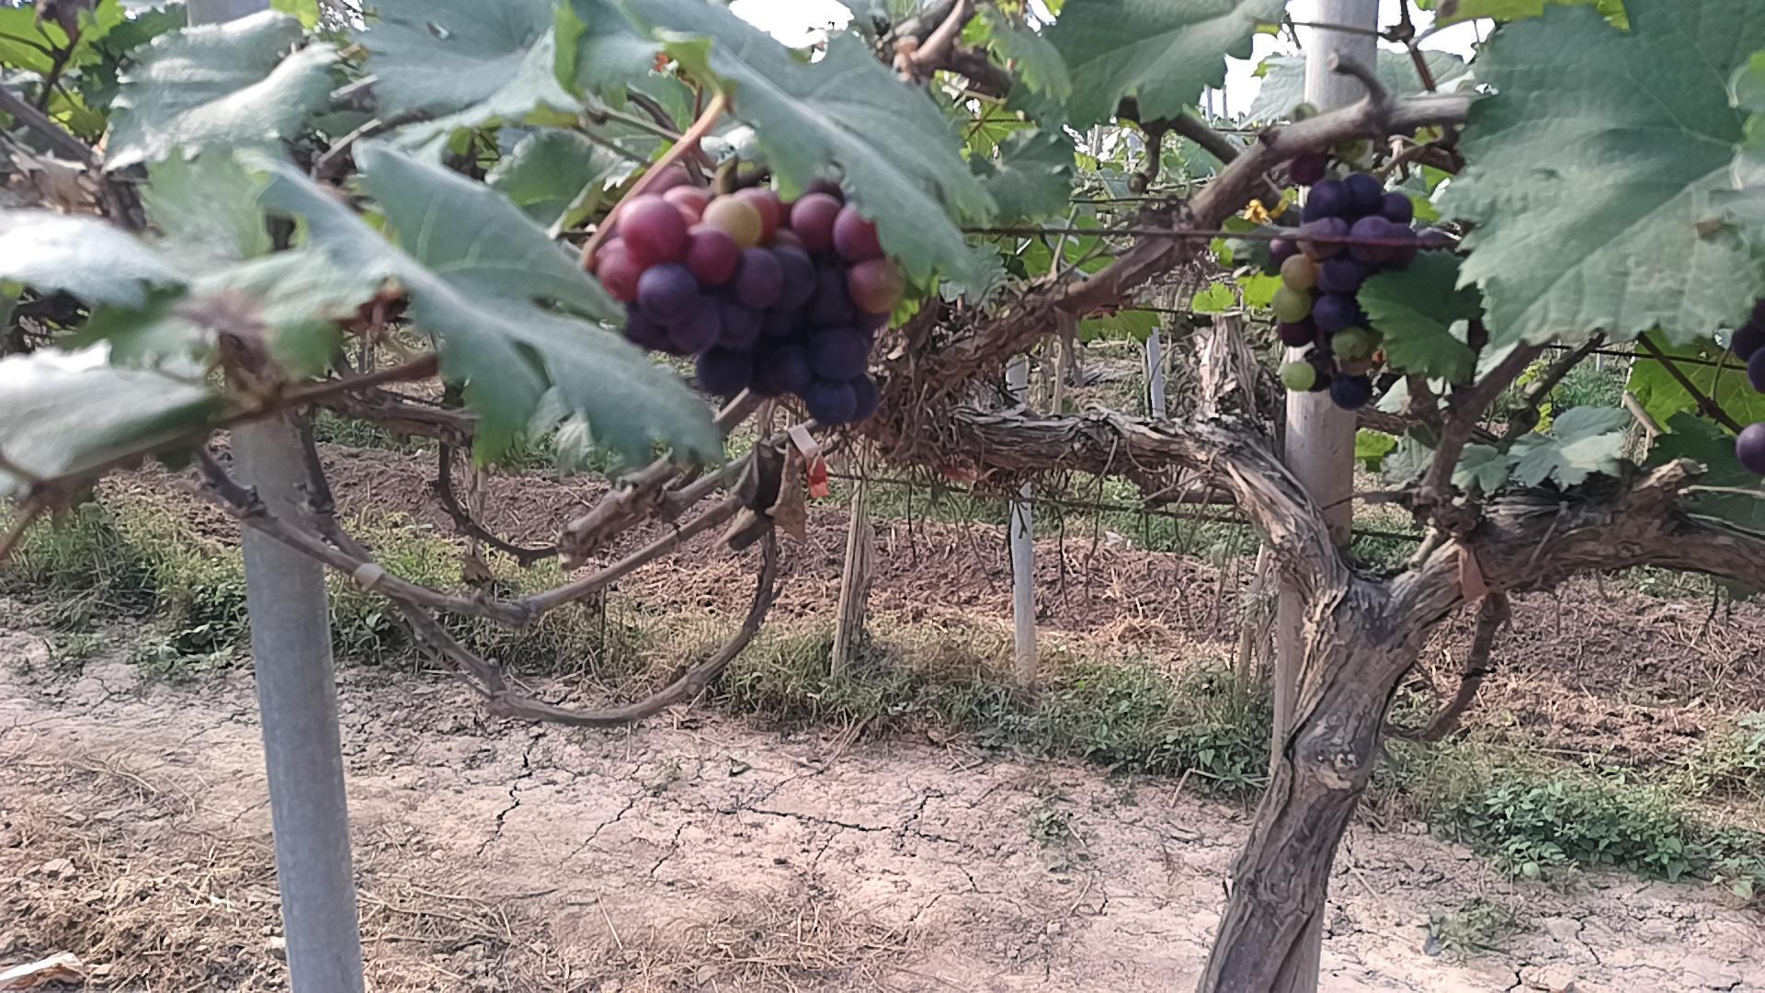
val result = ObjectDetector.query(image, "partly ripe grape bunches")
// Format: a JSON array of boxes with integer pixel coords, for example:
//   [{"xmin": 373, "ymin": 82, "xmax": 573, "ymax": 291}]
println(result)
[
  {"xmin": 592, "ymin": 165, "xmax": 901, "ymax": 426},
  {"xmin": 1270, "ymin": 151, "xmax": 1418, "ymax": 409}
]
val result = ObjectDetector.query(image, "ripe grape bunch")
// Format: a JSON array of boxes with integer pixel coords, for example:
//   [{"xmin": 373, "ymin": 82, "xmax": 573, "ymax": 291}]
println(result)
[{"xmin": 1729, "ymin": 298, "xmax": 1764, "ymax": 476}]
